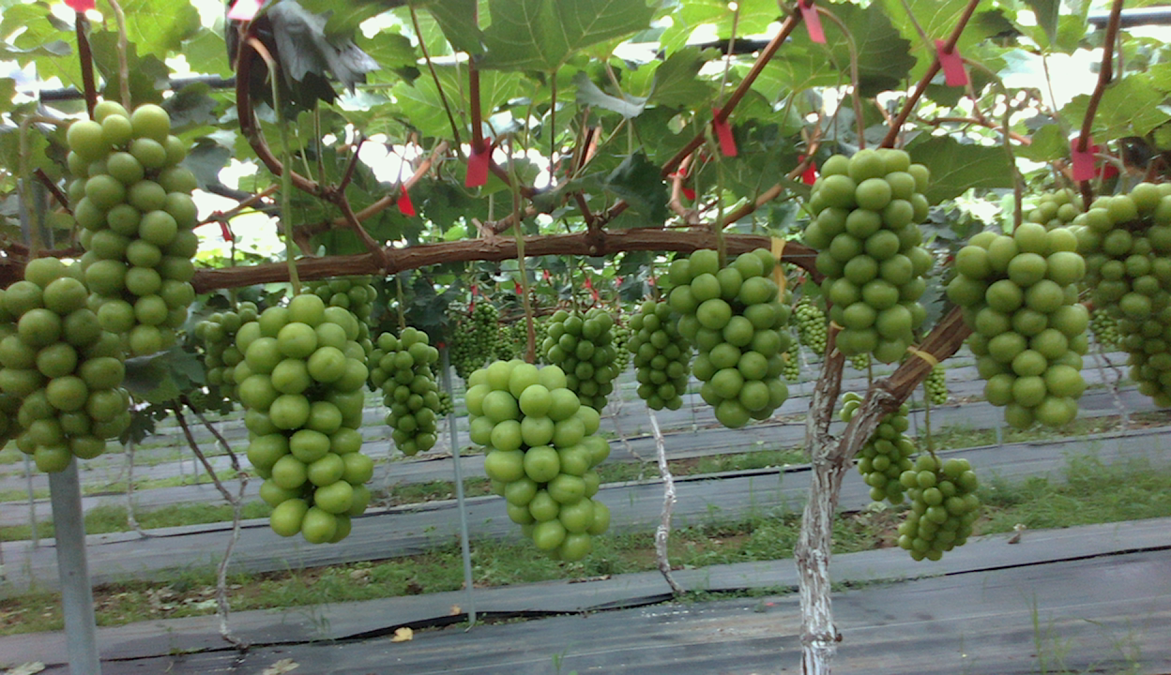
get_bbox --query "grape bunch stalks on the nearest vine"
[704,124,727,268]
[1093,153,1128,192]
[498,132,538,363]
[823,10,864,148]
[108,1,132,111]
[17,113,64,260]
[969,60,1021,227]
[252,40,299,294]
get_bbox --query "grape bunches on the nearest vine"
[232,294,374,547]
[464,359,610,563]
[668,247,790,429]
[1073,183,1169,322]
[0,257,129,472]
[945,224,1090,431]
[65,101,200,354]
[803,147,933,367]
